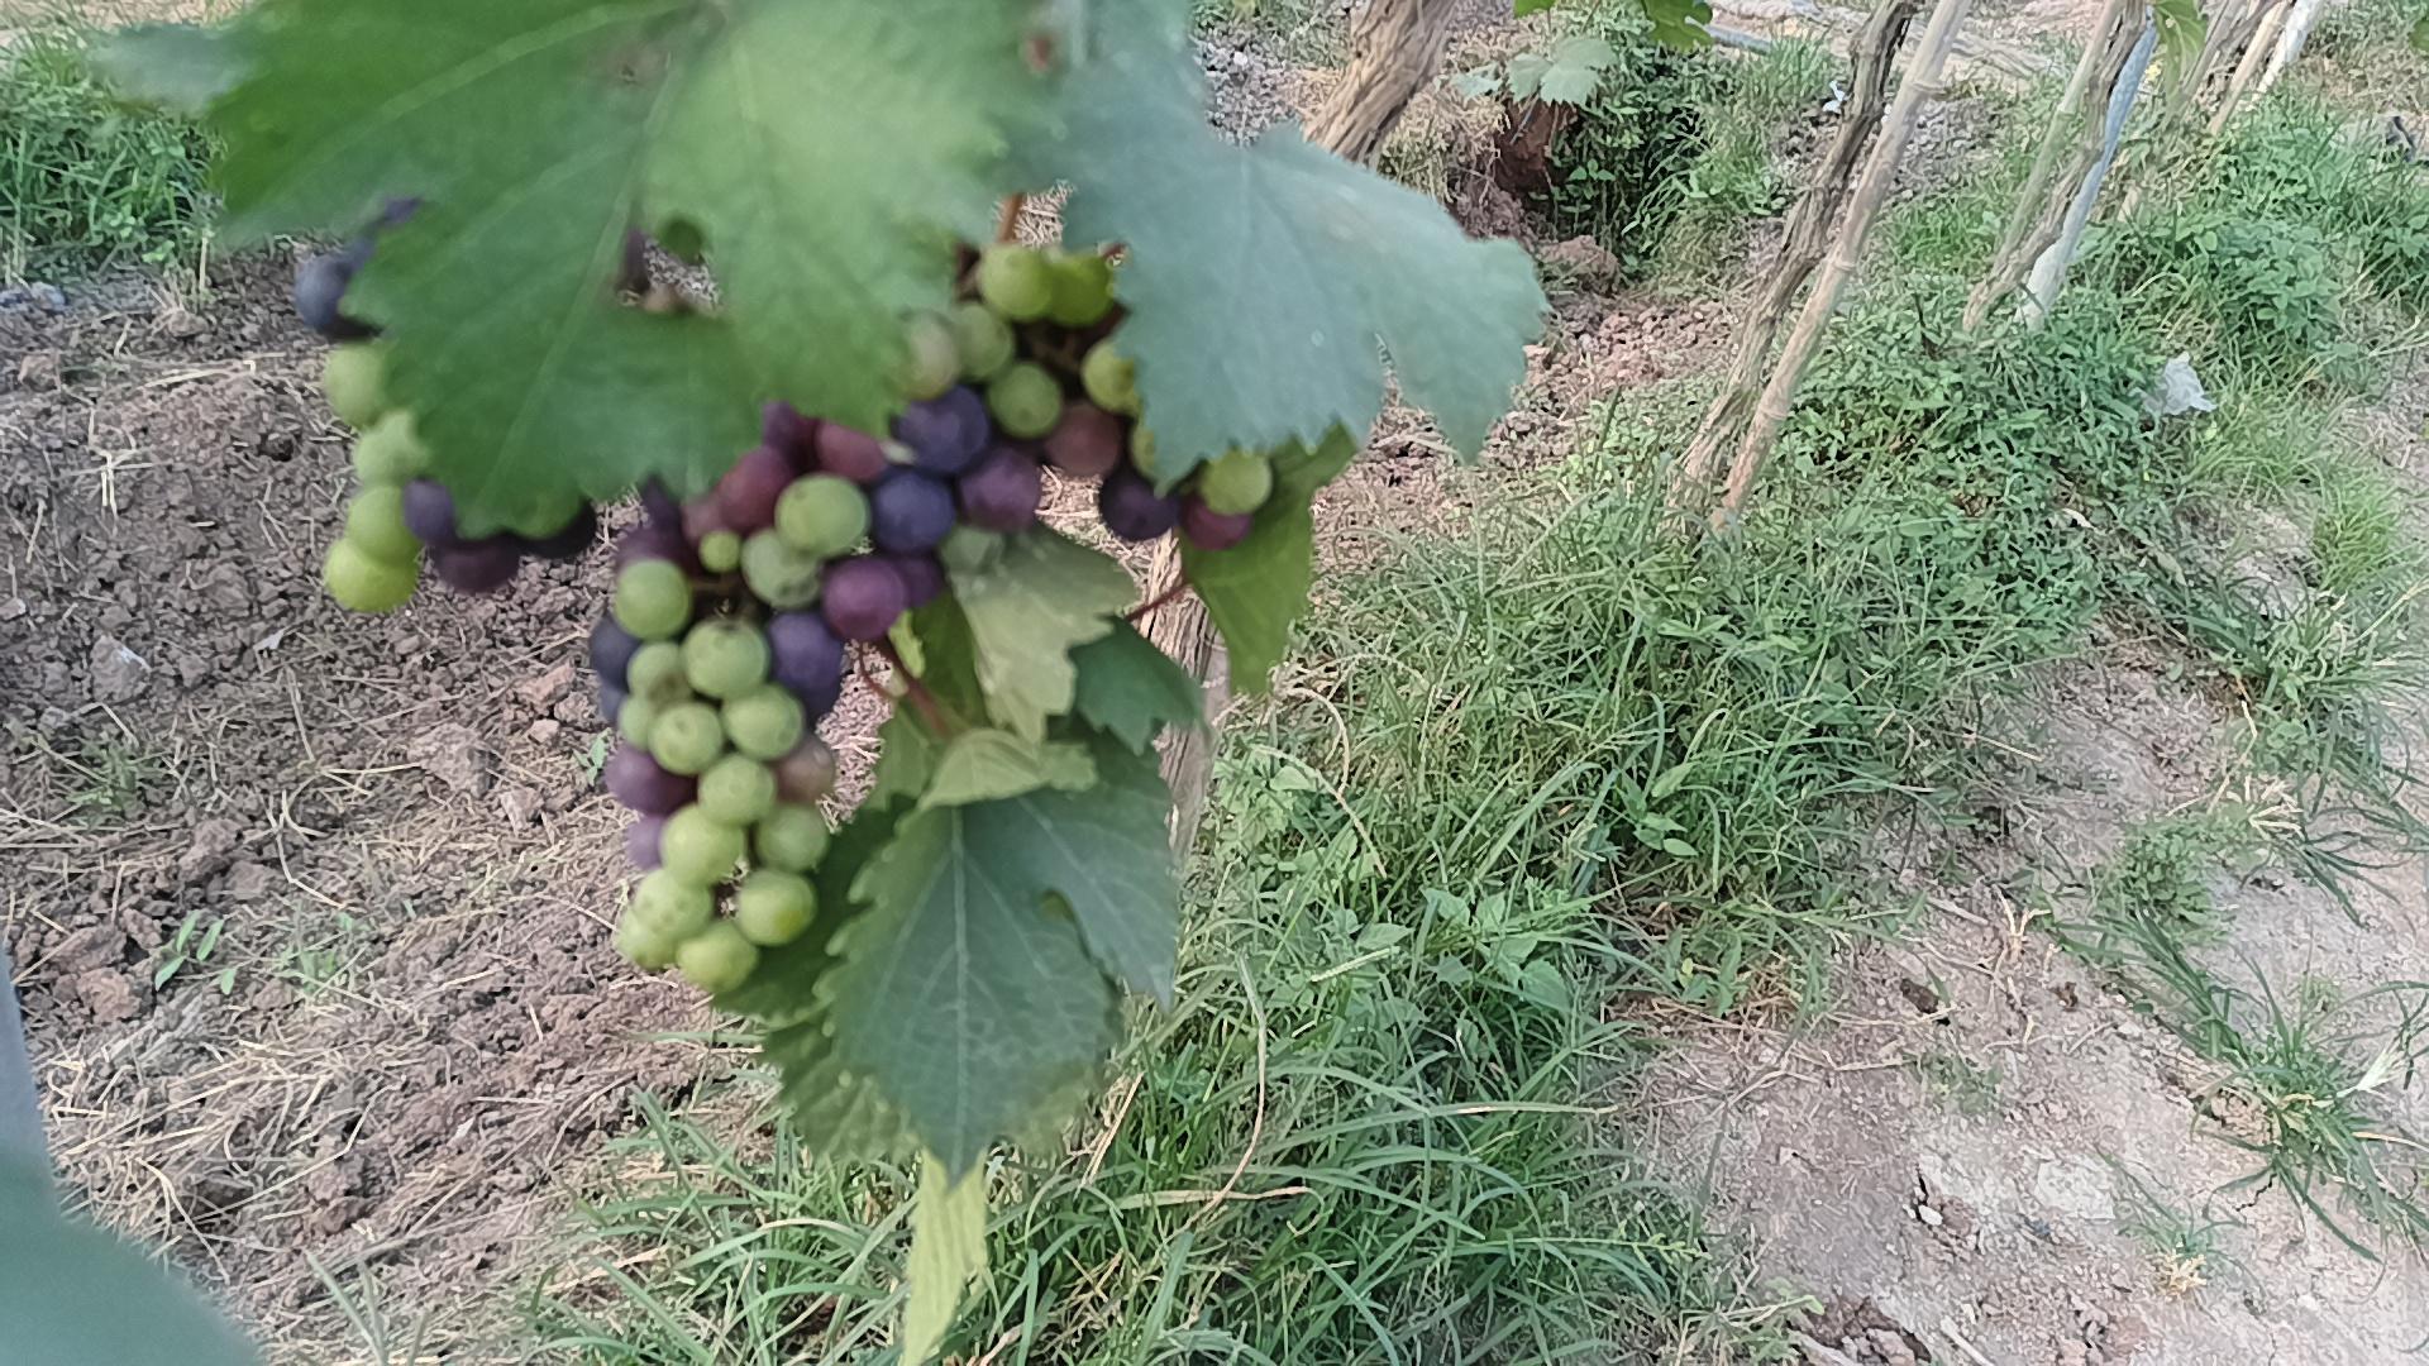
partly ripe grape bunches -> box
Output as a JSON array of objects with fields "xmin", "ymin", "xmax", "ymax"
[
  {"xmin": 297, "ymin": 201, "xmax": 596, "ymax": 613},
  {"xmin": 591, "ymin": 238, "xmax": 1274, "ymax": 981}
]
